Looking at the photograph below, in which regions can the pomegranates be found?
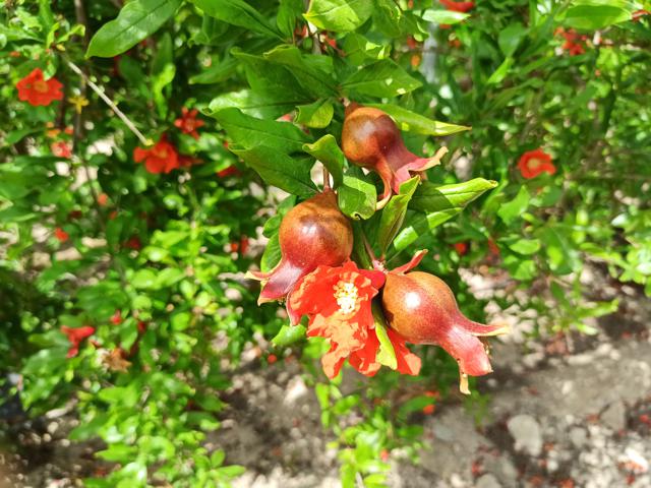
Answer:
[341,103,448,208]
[245,189,354,328]
[380,250,507,394]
